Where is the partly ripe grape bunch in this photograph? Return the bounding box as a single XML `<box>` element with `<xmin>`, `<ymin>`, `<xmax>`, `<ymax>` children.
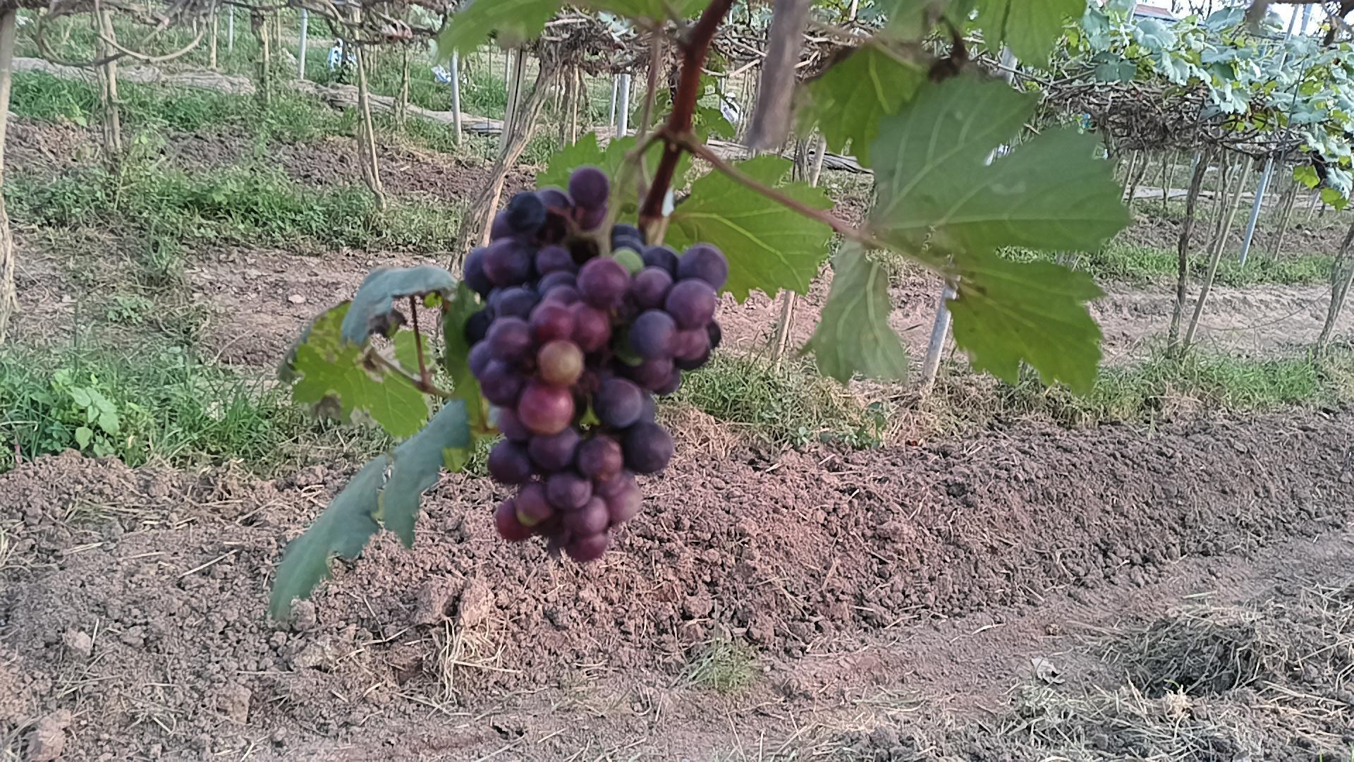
<box><xmin>463</xmin><ymin>165</ymin><xmax>727</xmax><ymax>561</ymax></box>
